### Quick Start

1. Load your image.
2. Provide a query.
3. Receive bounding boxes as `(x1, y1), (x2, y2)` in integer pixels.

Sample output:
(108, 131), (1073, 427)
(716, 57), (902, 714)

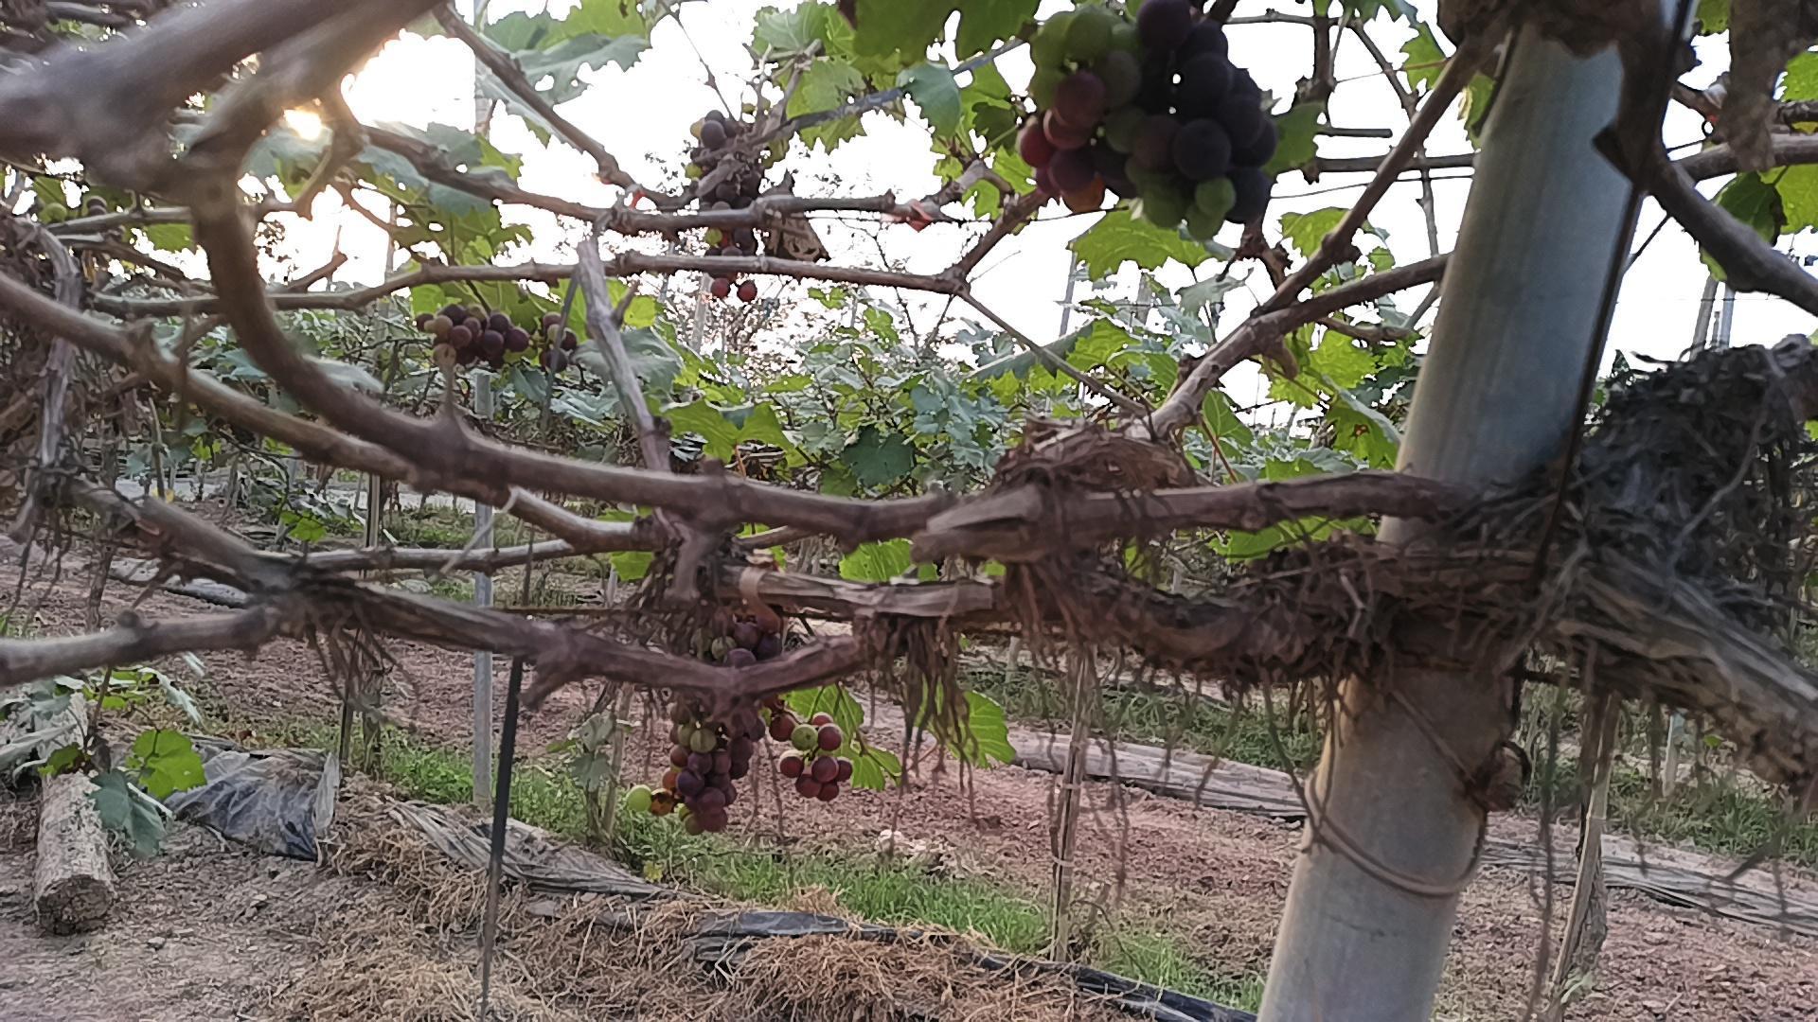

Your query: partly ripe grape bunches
(1018, 0), (1279, 238)
(417, 304), (579, 371)
(685, 97), (772, 303)
(769, 708), (852, 802)
(625, 600), (783, 836)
